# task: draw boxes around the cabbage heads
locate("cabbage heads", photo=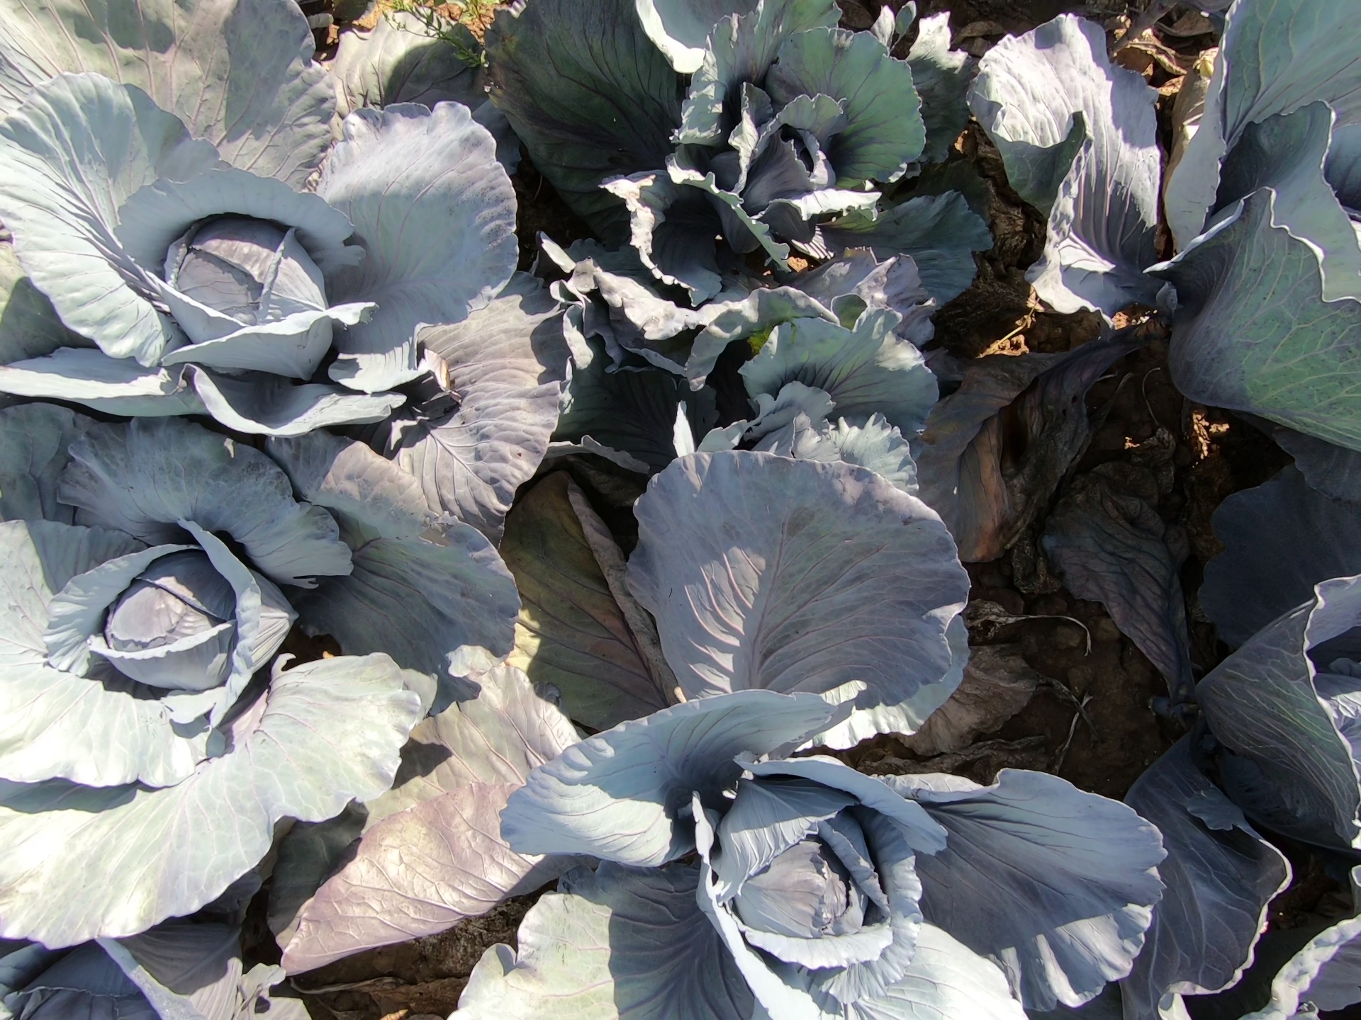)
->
[162,220,330,365]
[1251,200,1352,353]
[106,552,268,687]
[732,800,878,960]
[26,937,211,1015]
